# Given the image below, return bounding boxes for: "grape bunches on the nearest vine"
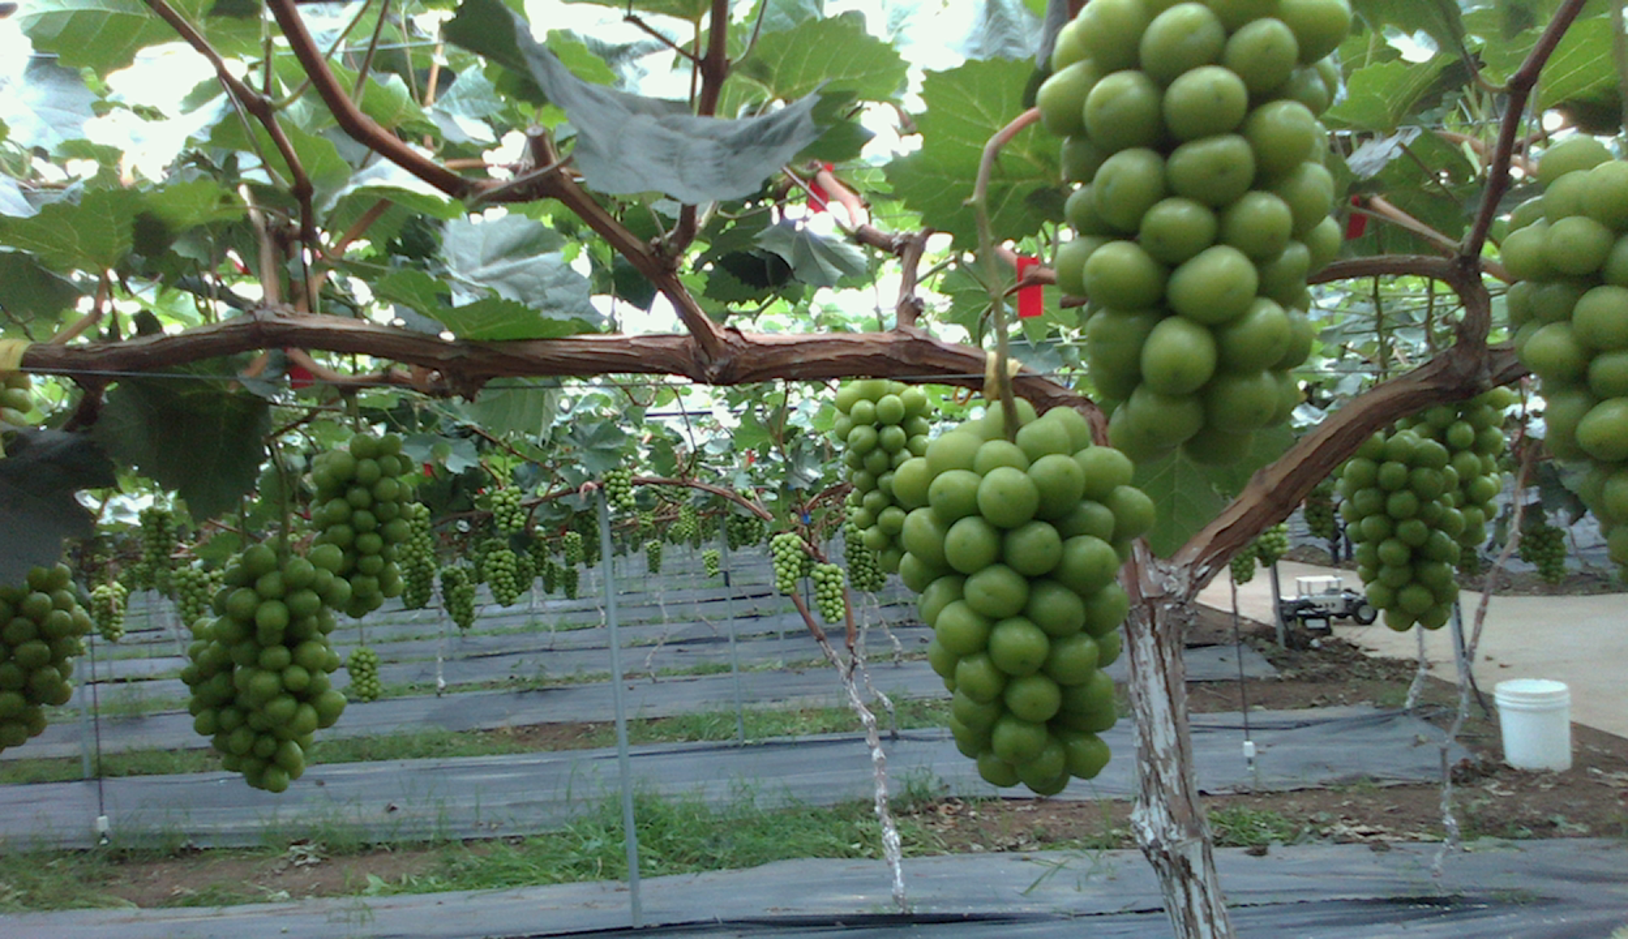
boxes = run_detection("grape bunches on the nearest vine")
[890,398,1154,796]
[1501,136,1627,565]
[1037,1,1351,469]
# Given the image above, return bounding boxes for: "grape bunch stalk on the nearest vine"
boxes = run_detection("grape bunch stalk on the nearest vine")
[963,108,1036,438]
